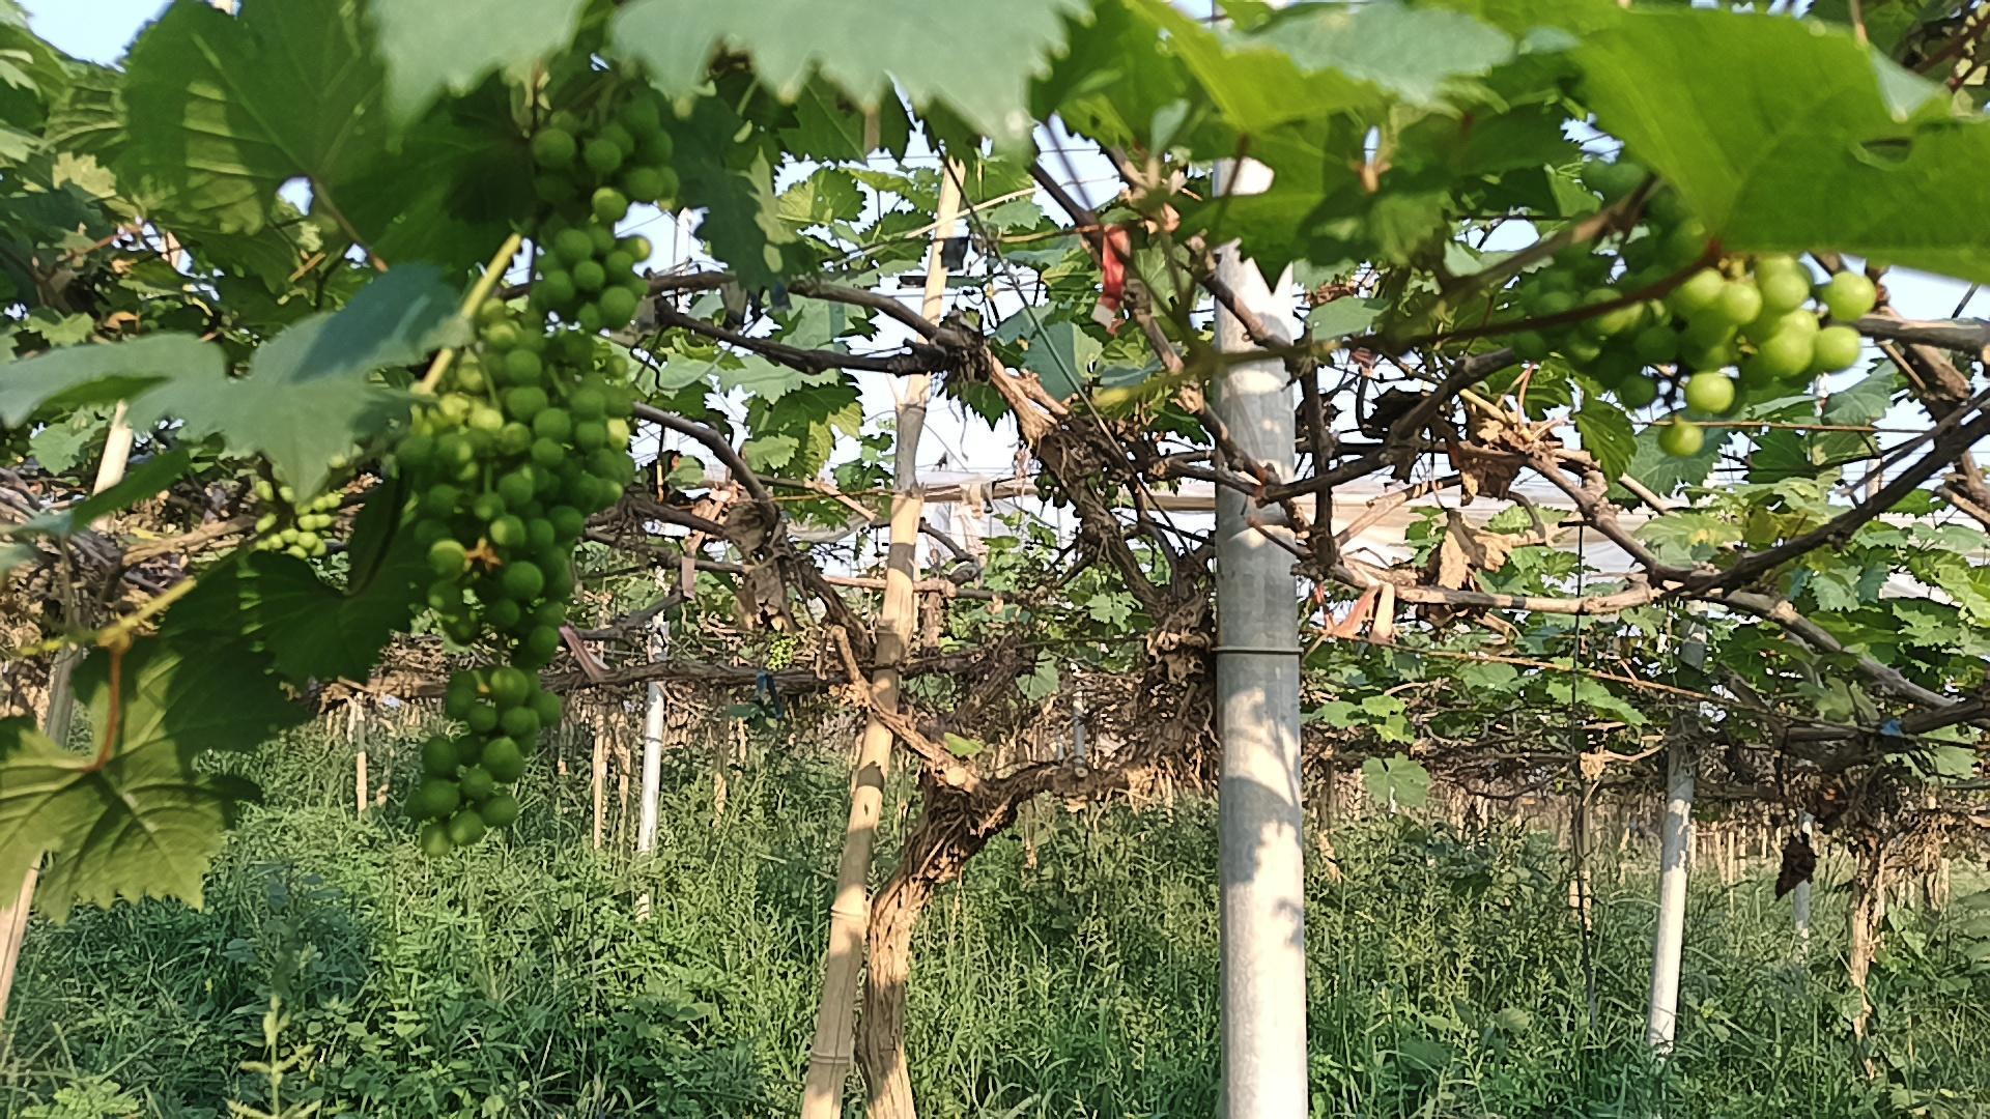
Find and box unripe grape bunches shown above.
[395,298,634,857]
[1507,162,1877,455]
[255,479,345,559]
[529,80,678,331]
